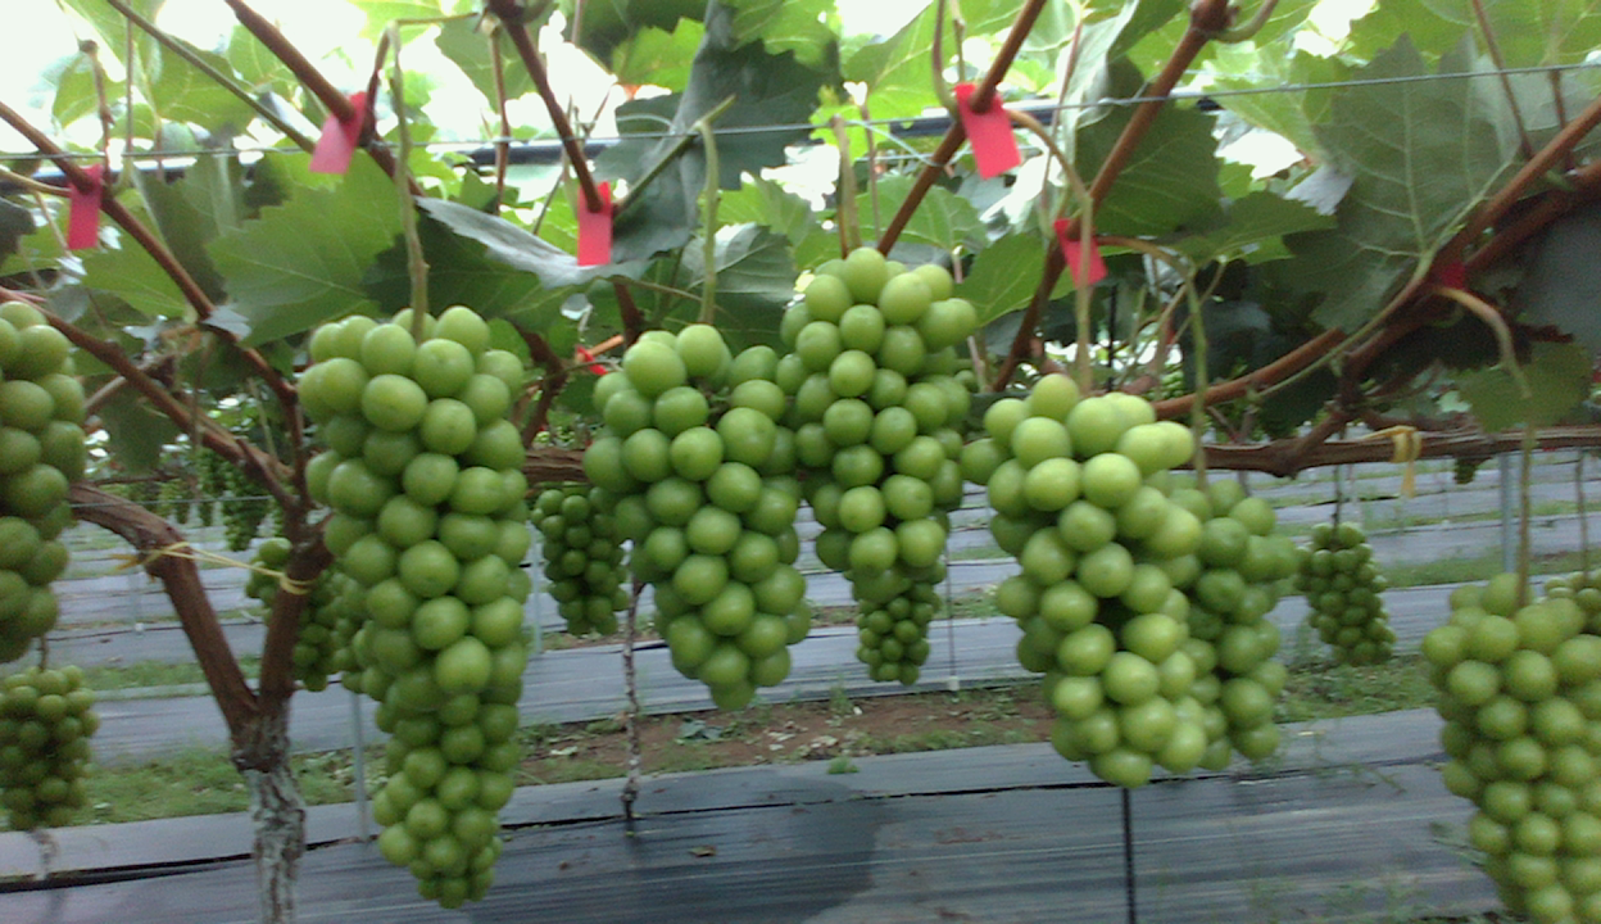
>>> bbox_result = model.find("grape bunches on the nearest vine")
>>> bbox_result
[366,666,520,879]
[777,248,975,601]
[963,370,1210,788]
[1,303,87,661]
[296,303,532,711]
[1176,477,1300,770]
[582,323,815,708]
[1419,572,1598,923]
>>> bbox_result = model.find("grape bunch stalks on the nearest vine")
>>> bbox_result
[1110,237,1207,486]
[695,94,734,326]
[389,23,426,340]
[1446,289,1532,604]
[830,119,861,246]
[1015,112,1096,393]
